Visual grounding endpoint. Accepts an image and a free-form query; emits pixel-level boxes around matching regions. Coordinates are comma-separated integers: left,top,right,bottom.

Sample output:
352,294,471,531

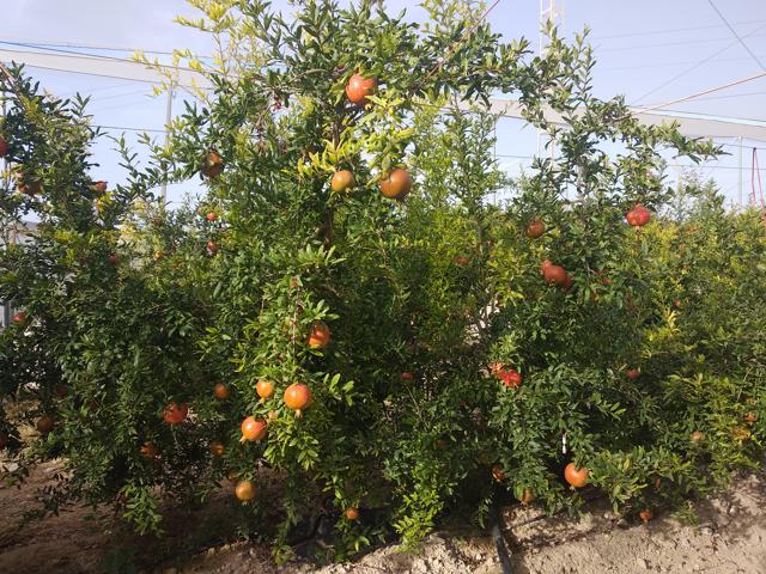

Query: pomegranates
203,152,224,177
345,506,360,520
345,73,378,111
211,441,225,457
284,384,311,419
237,416,269,446
141,440,158,457
503,370,523,387
625,204,651,233
330,169,357,196
527,220,546,240
543,264,567,283
516,488,535,506
309,322,330,347
255,381,273,402
163,402,190,426
235,478,257,506
37,415,55,432
639,509,652,523
564,462,590,493
213,383,230,401
625,368,639,379
0,138,8,157
492,361,507,379
491,465,505,481
378,169,412,203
